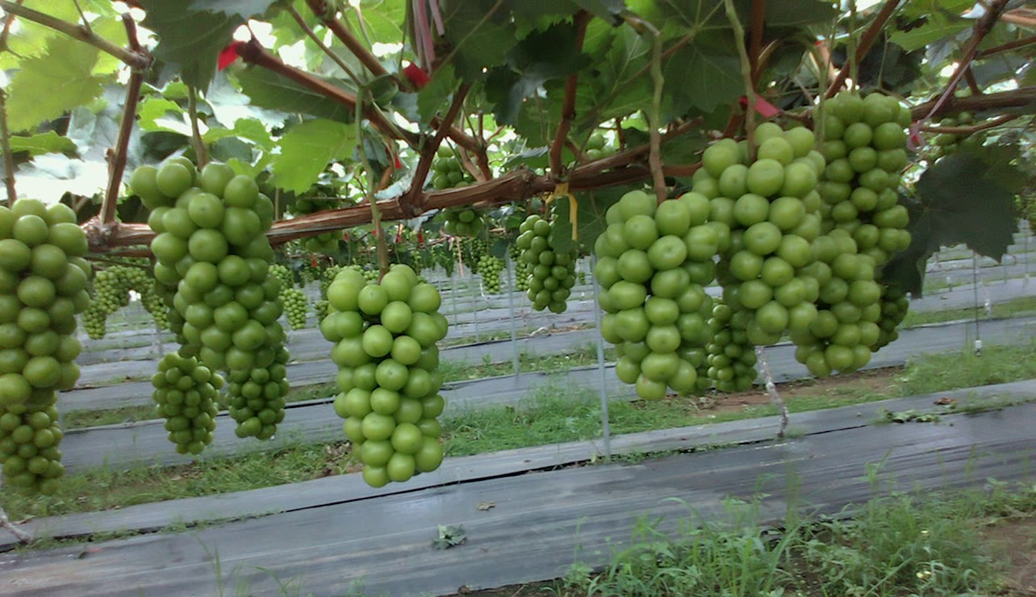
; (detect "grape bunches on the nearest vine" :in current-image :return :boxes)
[811,91,911,263]
[317,263,449,491]
[789,230,882,376]
[128,154,284,372]
[592,189,719,400]
[691,122,827,335]
[0,197,94,407]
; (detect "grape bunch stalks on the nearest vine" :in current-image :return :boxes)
[848,2,856,92]
[0,95,17,206]
[622,8,671,205]
[354,89,388,281]
[724,2,758,163]
[188,86,210,172]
